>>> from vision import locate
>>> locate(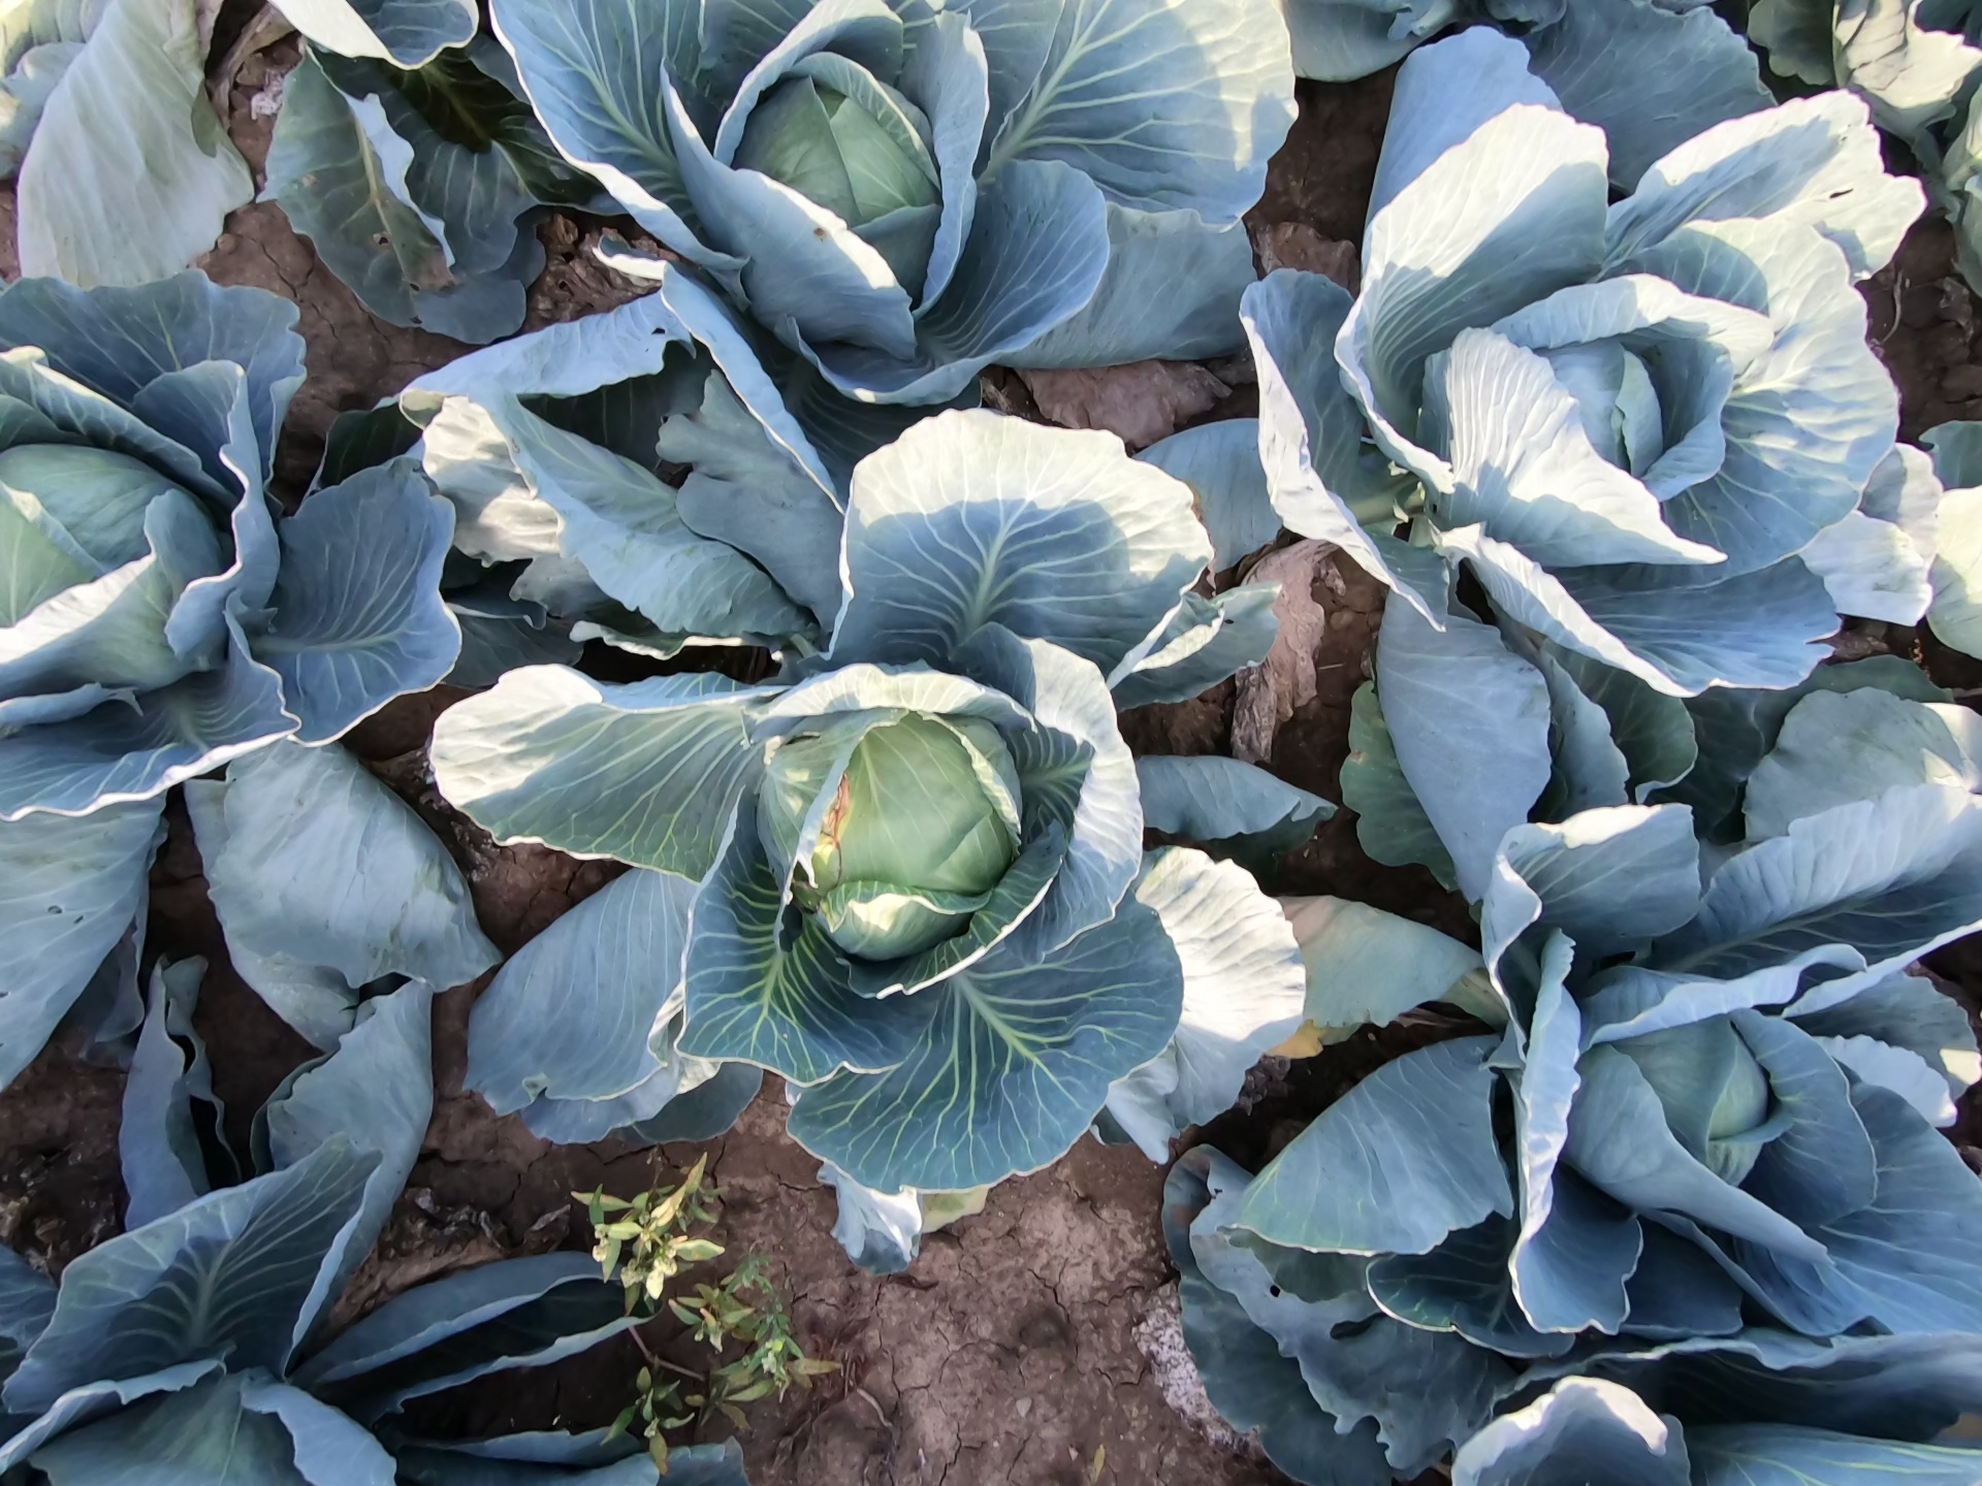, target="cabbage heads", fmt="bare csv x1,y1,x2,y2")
777,702,1024,958
2,439,222,692
1592,991,1771,1202
729,68,950,311
1502,335,1668,525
